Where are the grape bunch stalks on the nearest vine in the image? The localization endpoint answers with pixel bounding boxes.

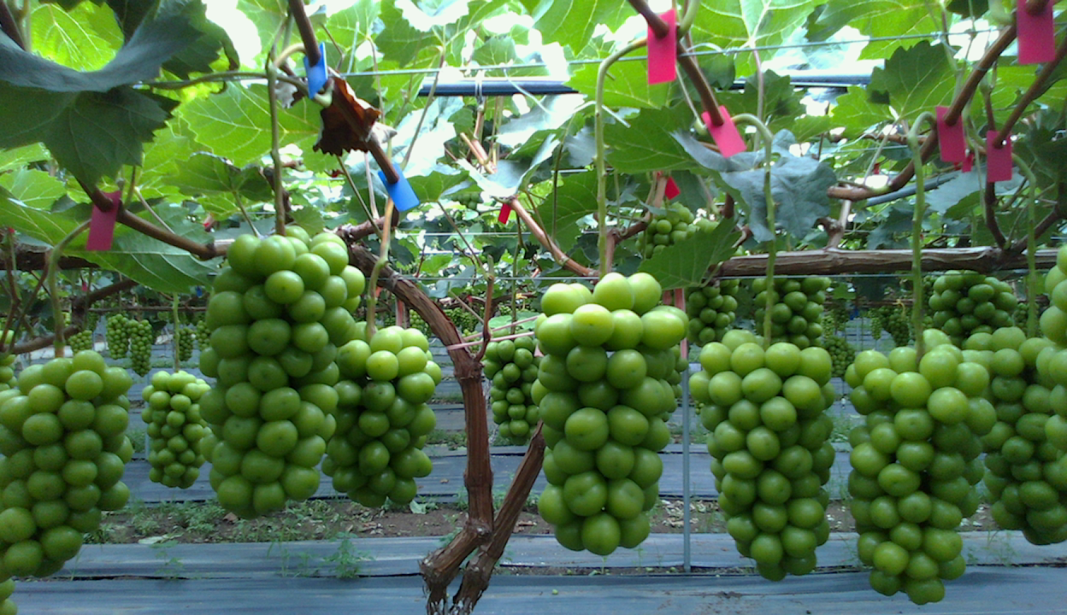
[268,43,307,237]
[595,38,648,282]
[48,220,91,358]
[729,114,775,351]
[908,111,937,367]
[1011,153,1035,339]
[365,196,395,344]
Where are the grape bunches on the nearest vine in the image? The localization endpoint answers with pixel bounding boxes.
[1035,245,1066,480]
[198,226,366,519]
[967,326,1066,546]
[844,329,997,606]
[322,321,441,507]
[688,329,836,582]
[0,349,133,614]
[531,272,688,556]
